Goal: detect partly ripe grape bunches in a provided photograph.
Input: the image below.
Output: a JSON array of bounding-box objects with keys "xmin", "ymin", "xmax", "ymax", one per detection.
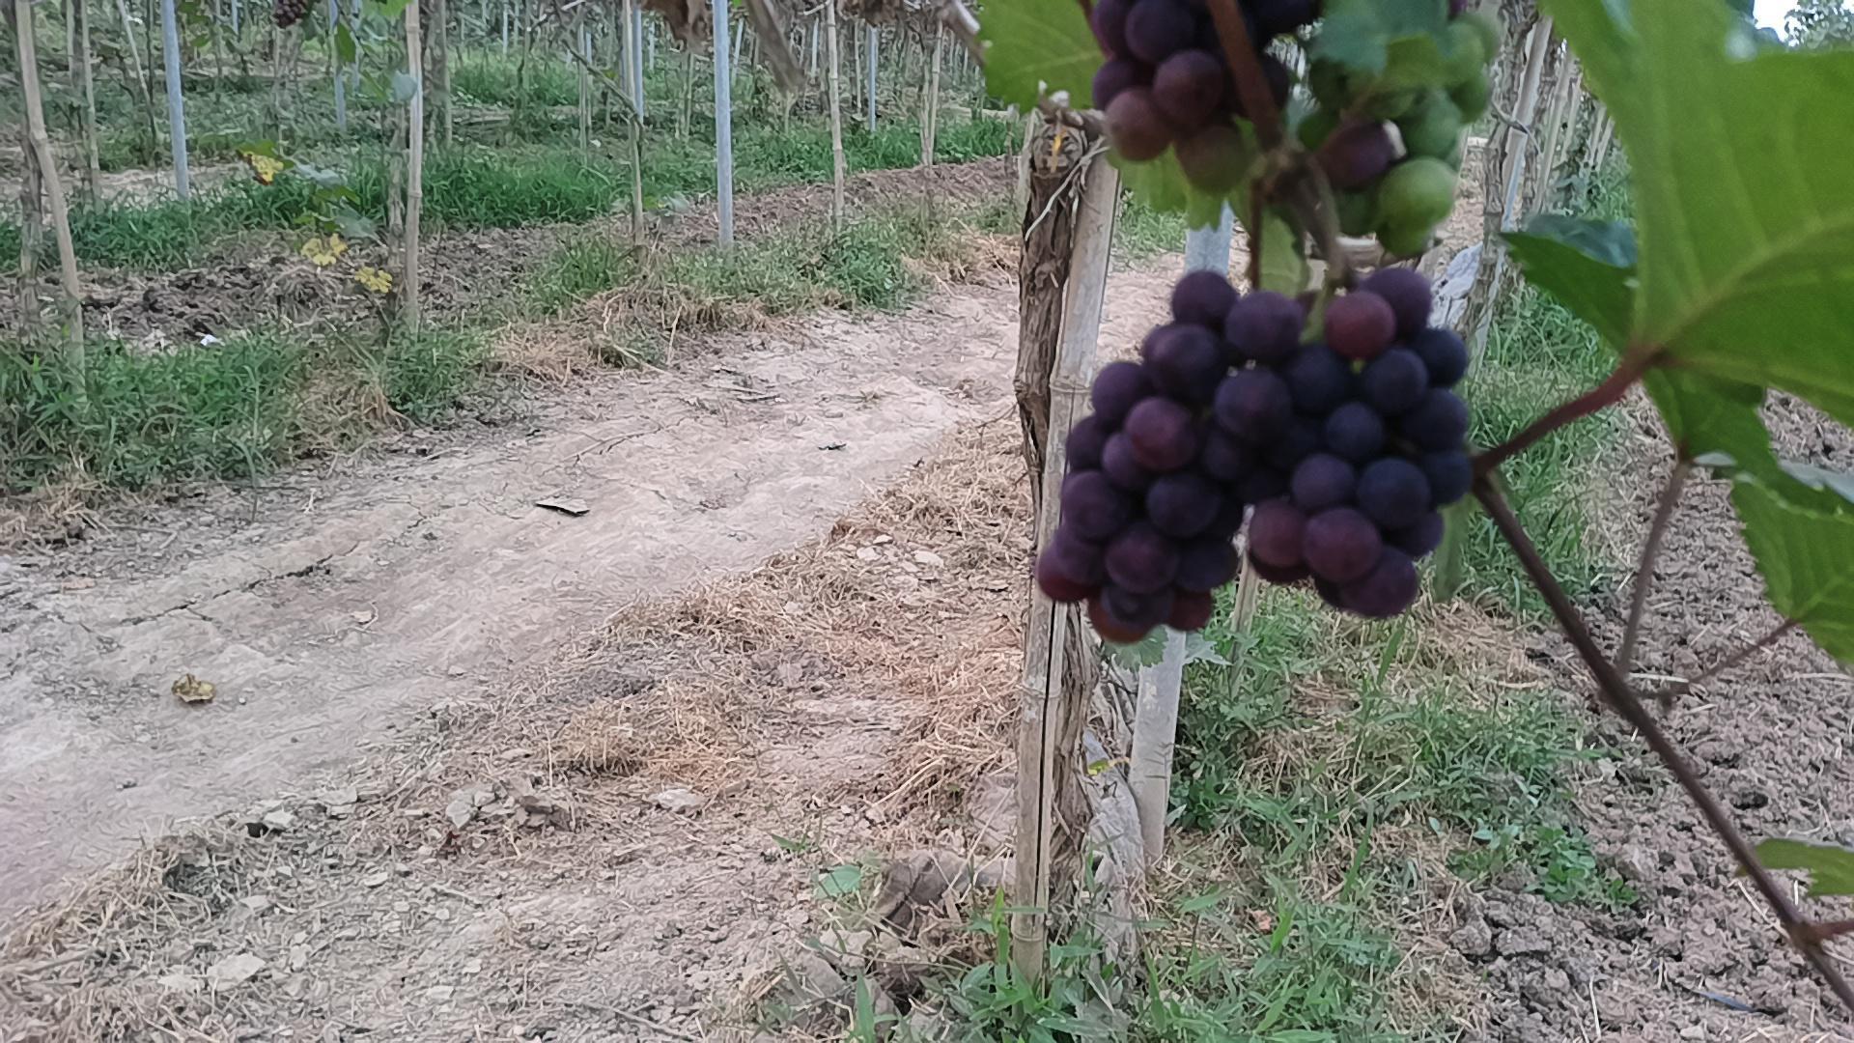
[
  {"xmin": 1081, "ymin": 0, "xmax": 1323, "ymax": 196},
  {"xmin": 1295, "ymin": 8, "xmax": 1499, "ymax": 257}
]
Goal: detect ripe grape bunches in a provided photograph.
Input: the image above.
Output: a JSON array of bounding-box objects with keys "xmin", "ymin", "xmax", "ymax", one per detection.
[
  {"xmin": 1228, "ymin": 264, "xmax": 1475, "ymax": 617},
  {"xmin": 1035, "ymin": 270, "xmax": 1306, "ymax": 641}
]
